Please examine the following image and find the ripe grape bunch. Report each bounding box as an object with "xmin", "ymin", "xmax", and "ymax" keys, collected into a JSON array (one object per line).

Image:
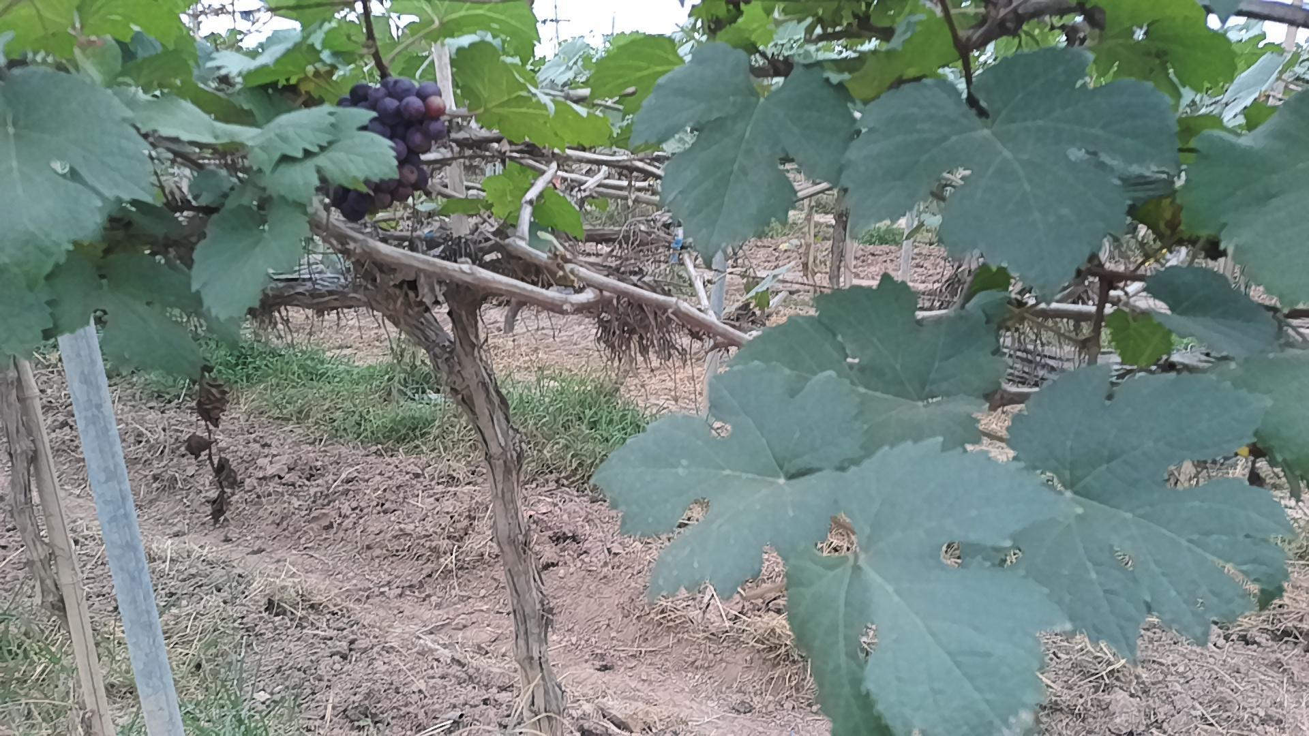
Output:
[{"xmin": 328, "ymin": 77, "xmax": 447, "ymax": 222}]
